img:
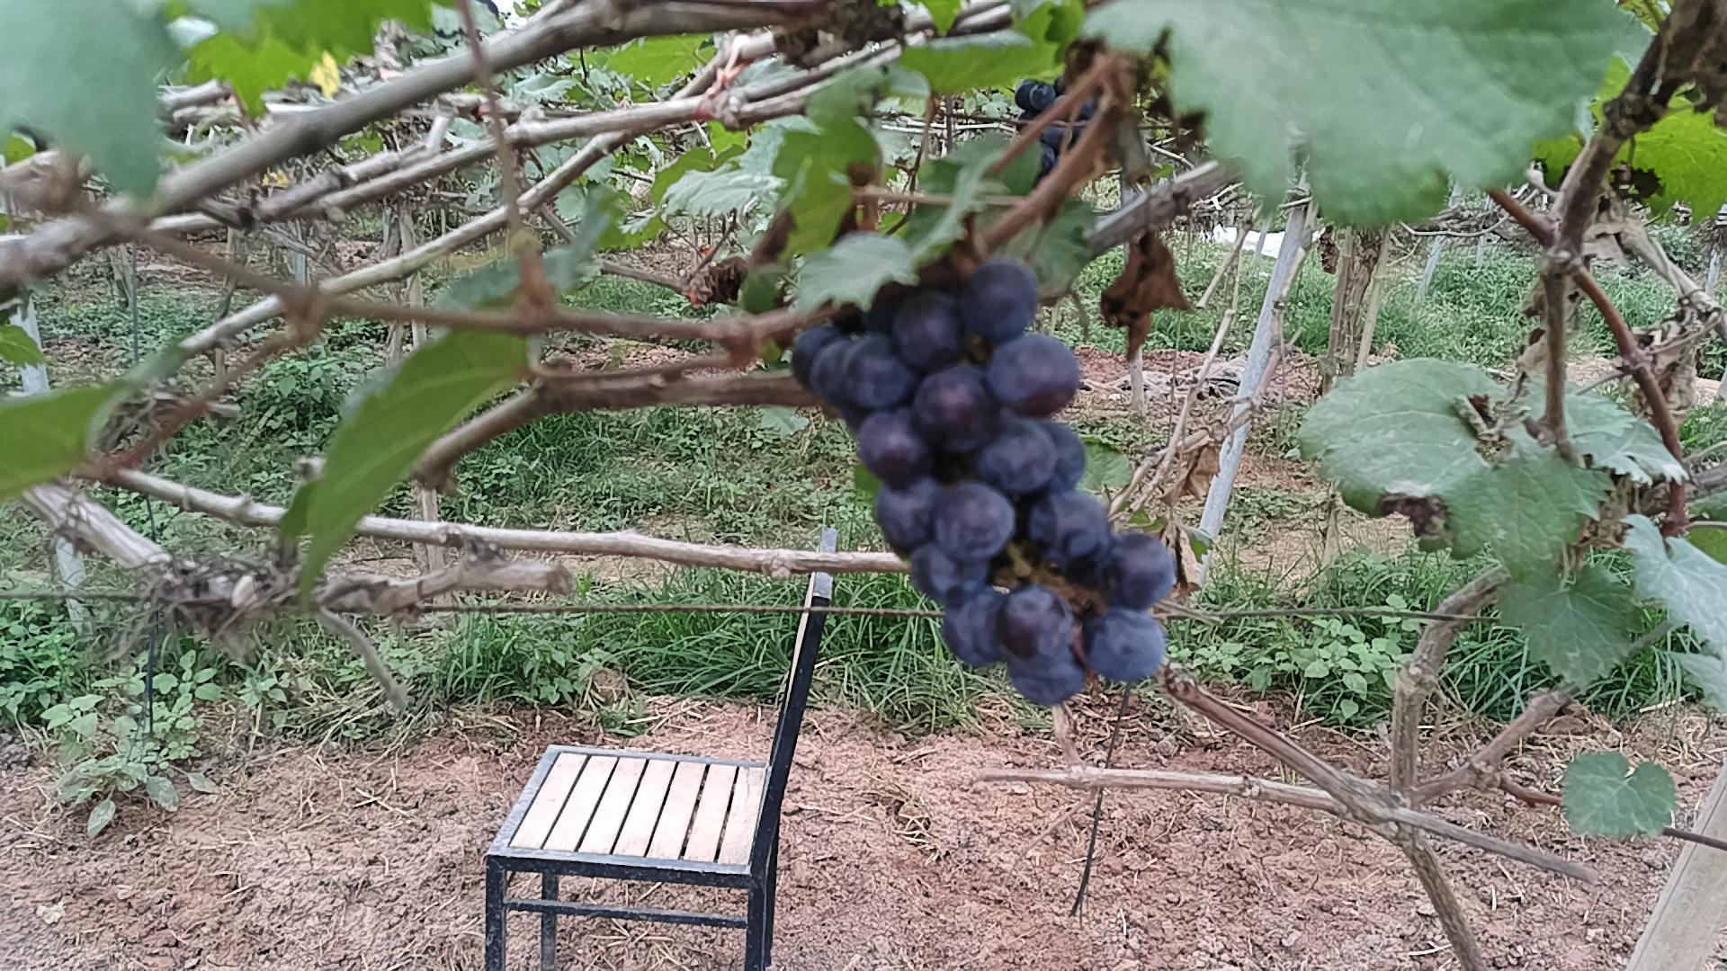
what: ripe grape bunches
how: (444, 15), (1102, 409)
(1013, 73), (1096, 176)
(792, 259), (1176, 706)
